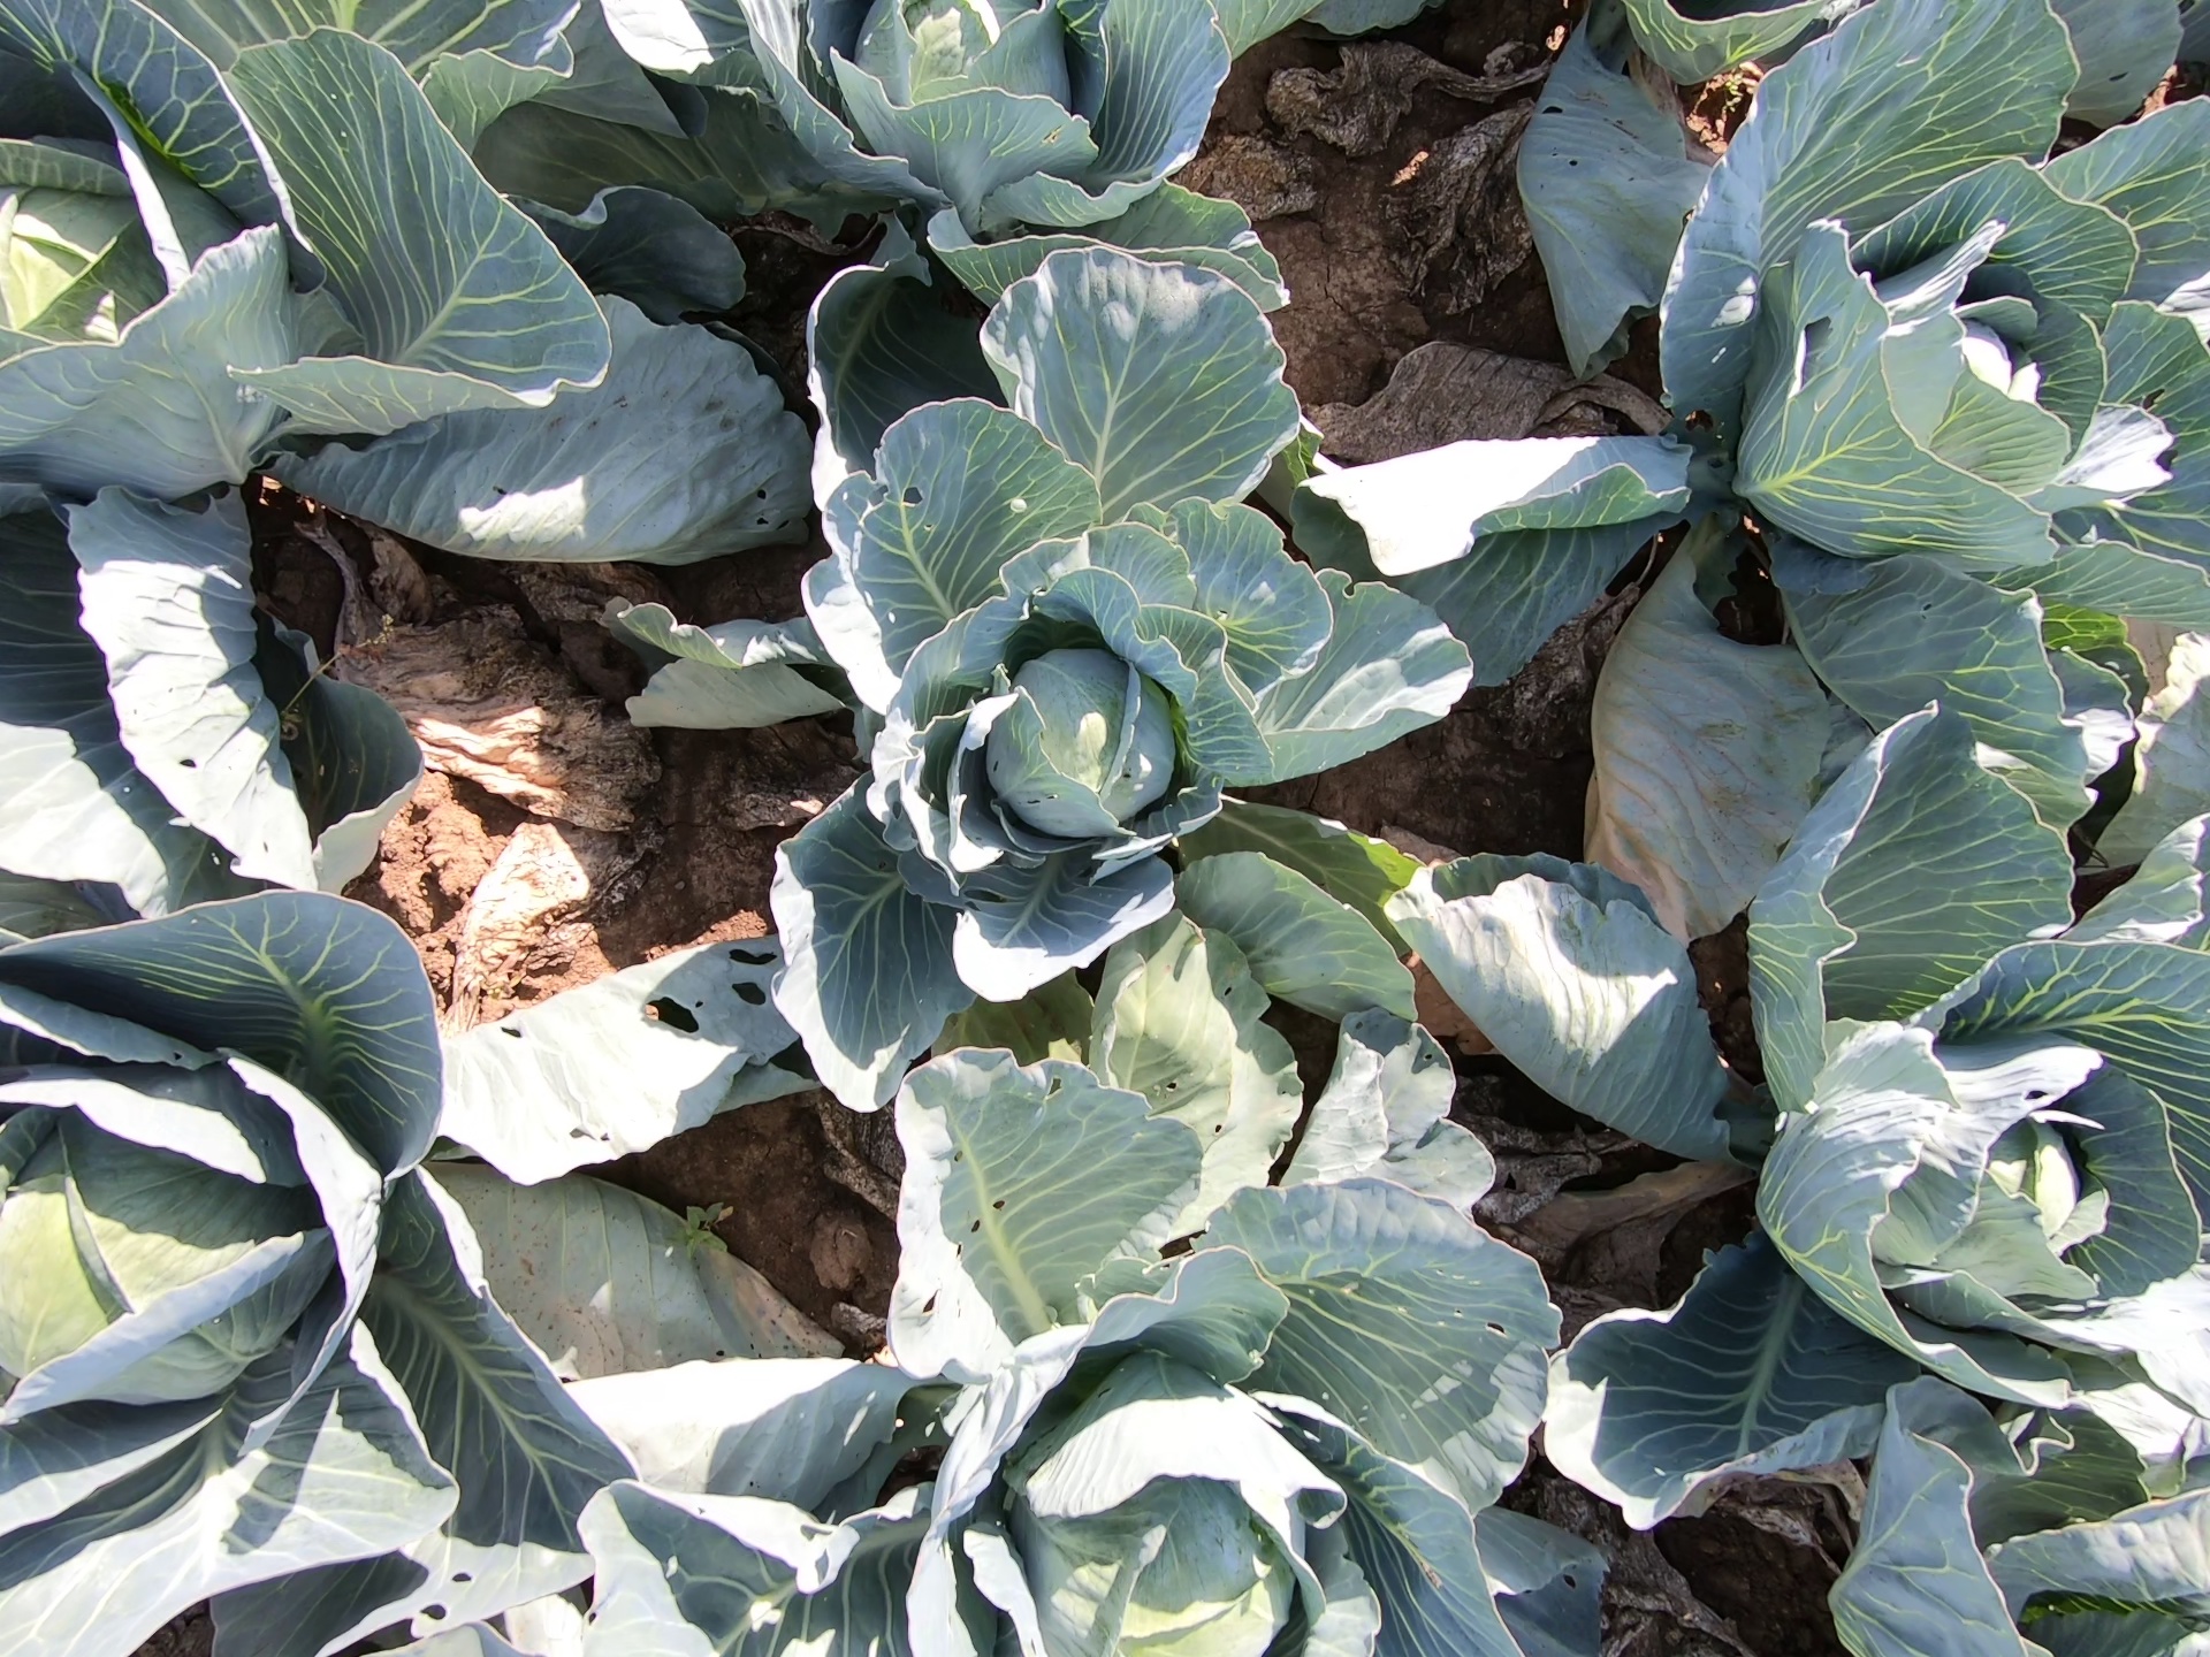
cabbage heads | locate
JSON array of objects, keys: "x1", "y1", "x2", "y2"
[
  {"x1": 3, "y1": 136, "x2": 260, "y2": 468},
  {"x1": 1845, "y1": 1087, "x2": 2080, "y2": 1276},
  {"x1": 1872, "y1": 311, "x2": 2014, "y2": 482},
  {"x1": 990, "y1": 652, "x2": 1172, "y2": 835},
  {"x1": 861, "y1": 2, "x2": 1064, "y2": 158},
  {"x1": 2, "y1": 1066, "x2": 313, "y2": 1406},
  {"x1": 1021, "y1": 1404, "x2": 1301, "y2": 1654}
]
